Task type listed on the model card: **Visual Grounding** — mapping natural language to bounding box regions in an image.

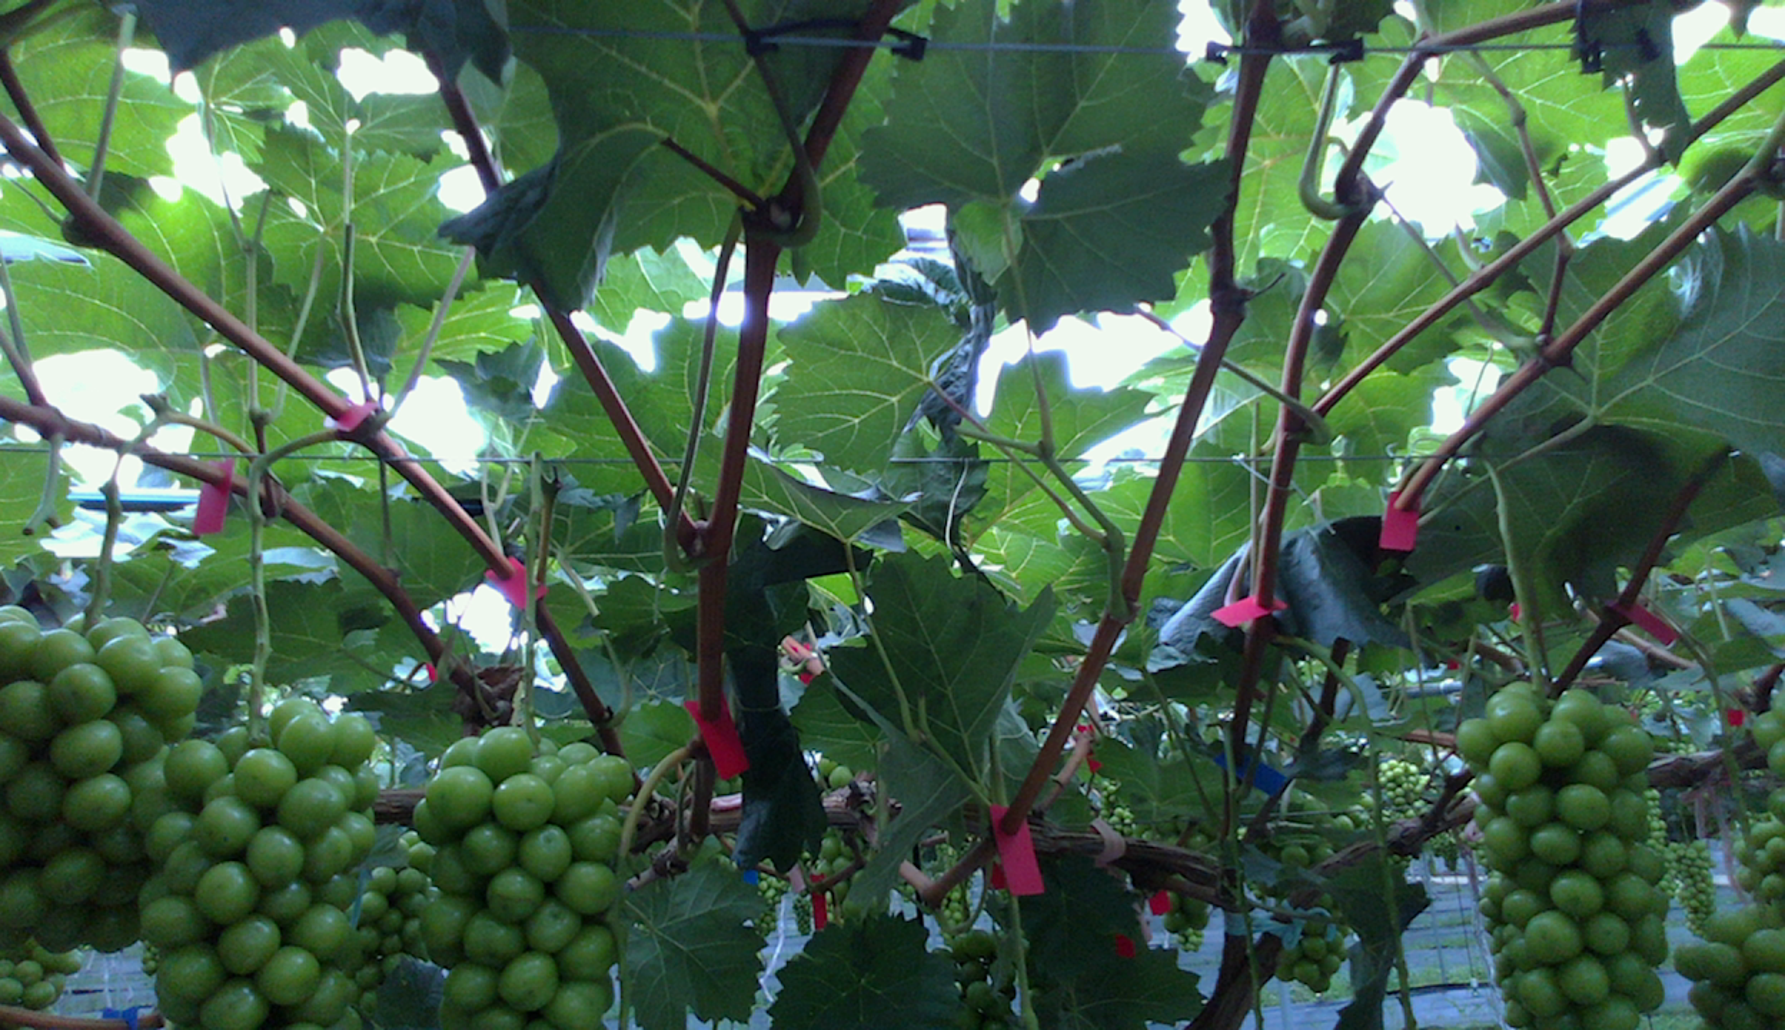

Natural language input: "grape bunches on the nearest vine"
[413,727,635,1029]
[1,607,200,953]
[1455,682,1669,1029]
[136,698,383,1029]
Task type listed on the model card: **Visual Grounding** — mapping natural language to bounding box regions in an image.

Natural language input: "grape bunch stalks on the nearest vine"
[521,452,542,741]
[1476,453,1548,711]
[246,435,316,741]
[83,395,249,627]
